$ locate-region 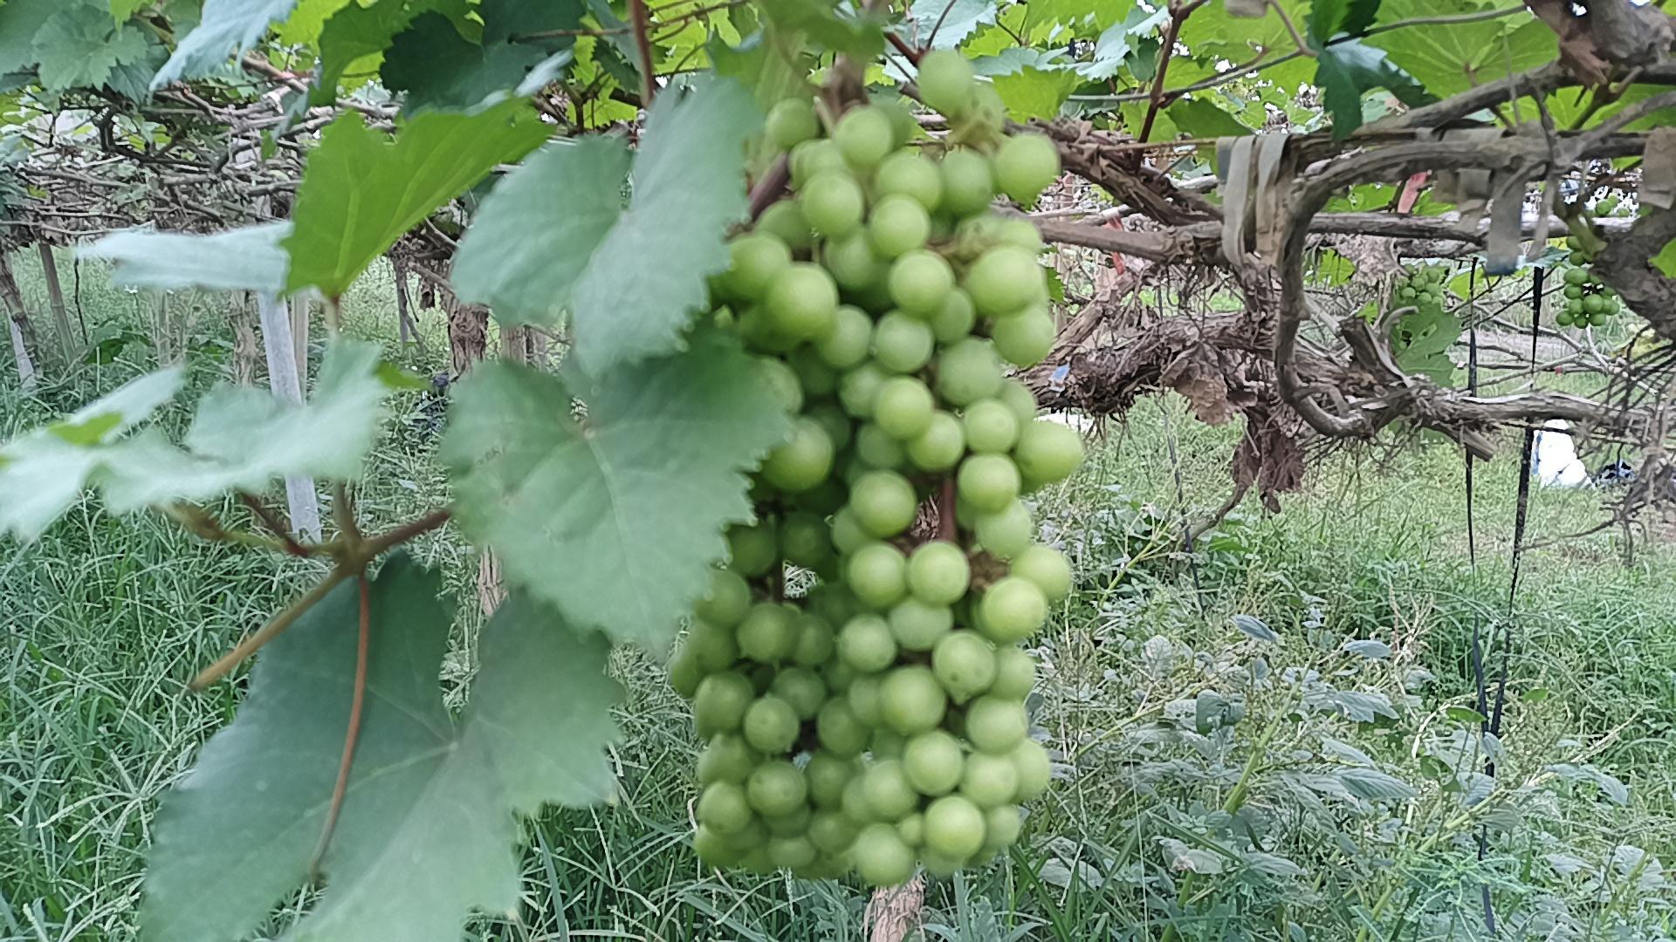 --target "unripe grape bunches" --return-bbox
[711,51,1082,884]
[671,475,902,877]
[1556,193,1630,328]
[1393,263,1448,310]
